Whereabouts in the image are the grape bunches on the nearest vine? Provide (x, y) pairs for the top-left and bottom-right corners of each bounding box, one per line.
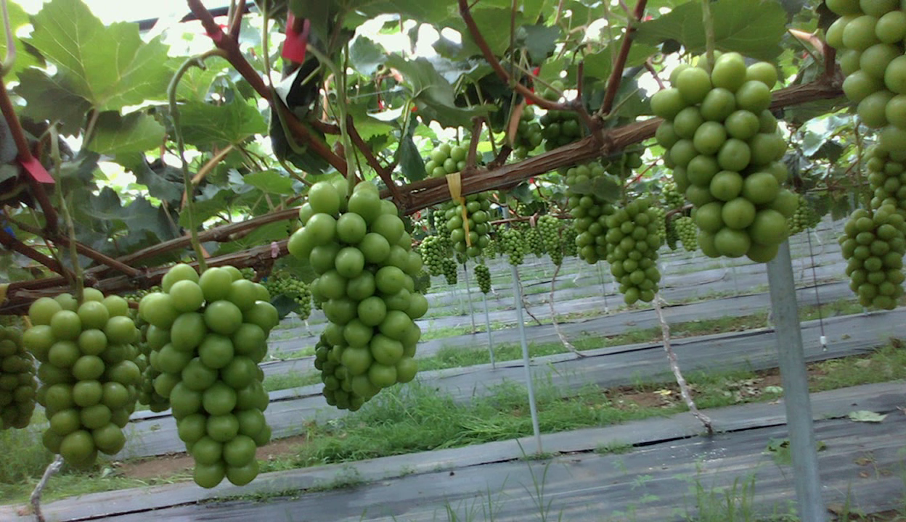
(650, 51), (796, 264)
(139, 263), (280, 490)
(287, 181), (428, 397)
(21, 289), (141, 468)
(825, 1), (905, 148)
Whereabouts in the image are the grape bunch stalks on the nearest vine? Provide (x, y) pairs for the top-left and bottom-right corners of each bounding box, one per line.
(166, 49), (219, 272)
(310, 49), (355, 196)
(702, 0), (714, 70)
(40, 120), (83, 304)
